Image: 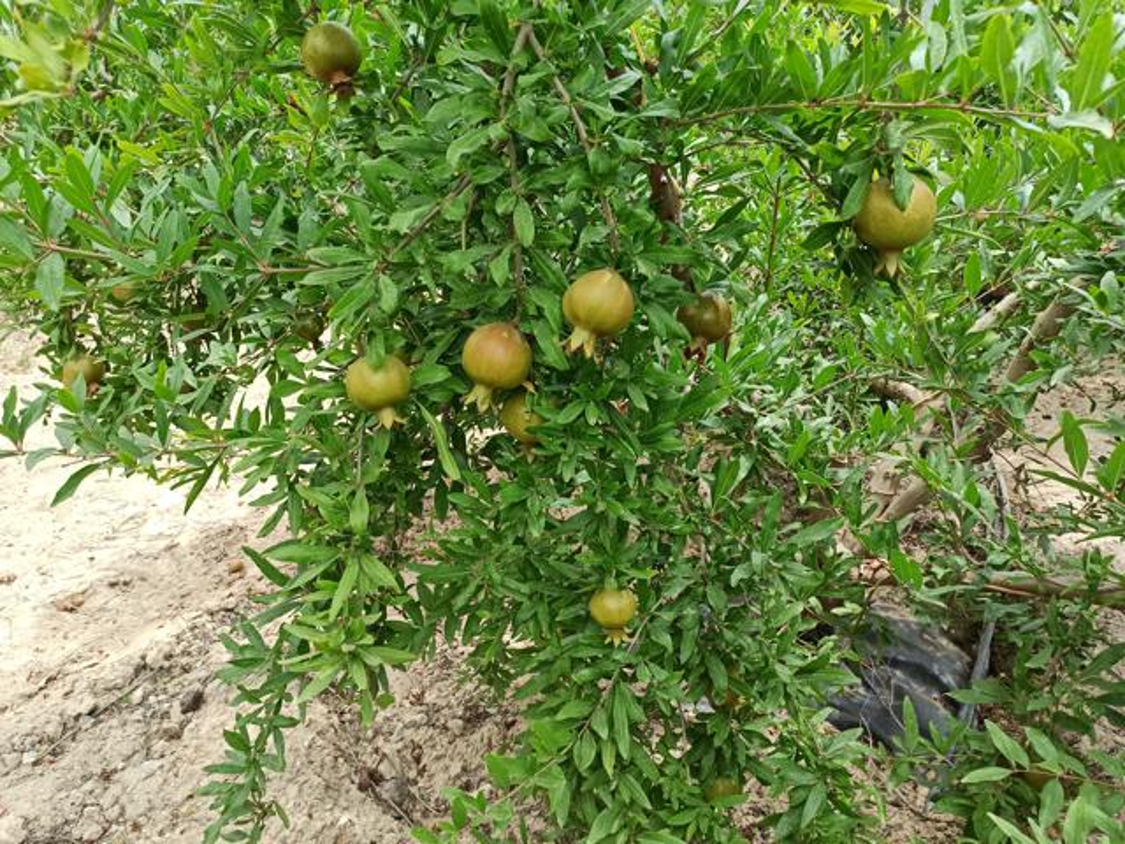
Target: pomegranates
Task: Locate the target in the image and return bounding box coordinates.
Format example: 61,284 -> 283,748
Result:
63,355 -> 105,396
703,781 -> 742,802
589,587 -> 636,649
557,267 -> 635,362
299,23 -> 364,95
851,174 -> 937,280
459,320 -> 536,413
346,355 -> 411,433
501,394 -> 545,464
677,290 -> 731,366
